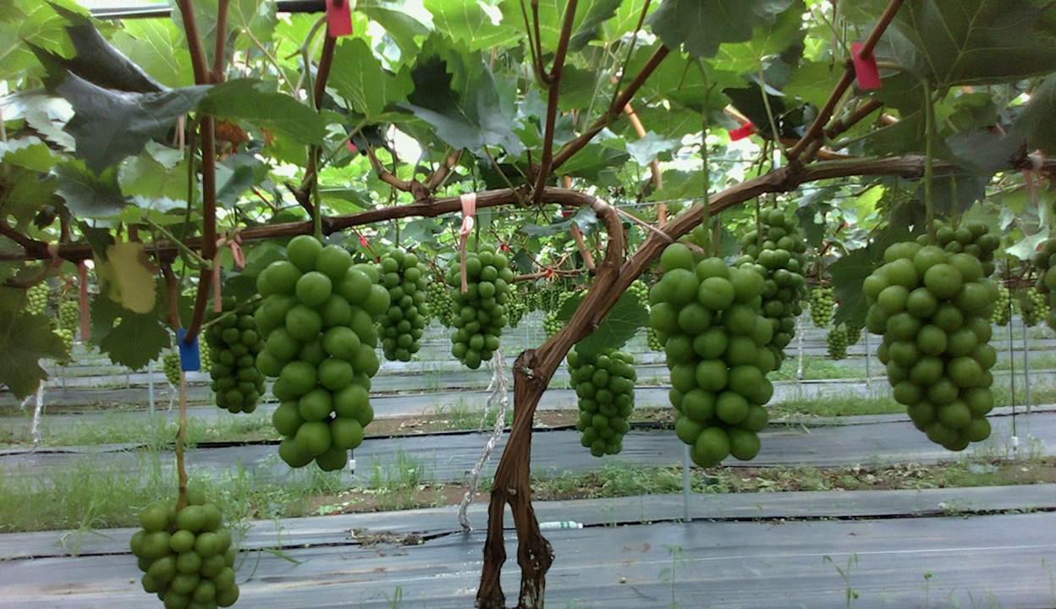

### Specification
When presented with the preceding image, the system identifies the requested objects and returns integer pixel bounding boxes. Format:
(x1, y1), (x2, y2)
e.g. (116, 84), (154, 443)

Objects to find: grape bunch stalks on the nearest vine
(877, 61), (935, 244)
(175, 370), (188, 513)
(692, 57), (712, 255)
(310, 145), (322, 243)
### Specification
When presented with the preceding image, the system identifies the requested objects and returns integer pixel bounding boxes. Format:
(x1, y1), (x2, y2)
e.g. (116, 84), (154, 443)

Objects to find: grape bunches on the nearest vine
(861, 233), (1000, 451)
(130, 487), (239, 608)
(254, 235), (391, 472)
(648, 243), (776, 468)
